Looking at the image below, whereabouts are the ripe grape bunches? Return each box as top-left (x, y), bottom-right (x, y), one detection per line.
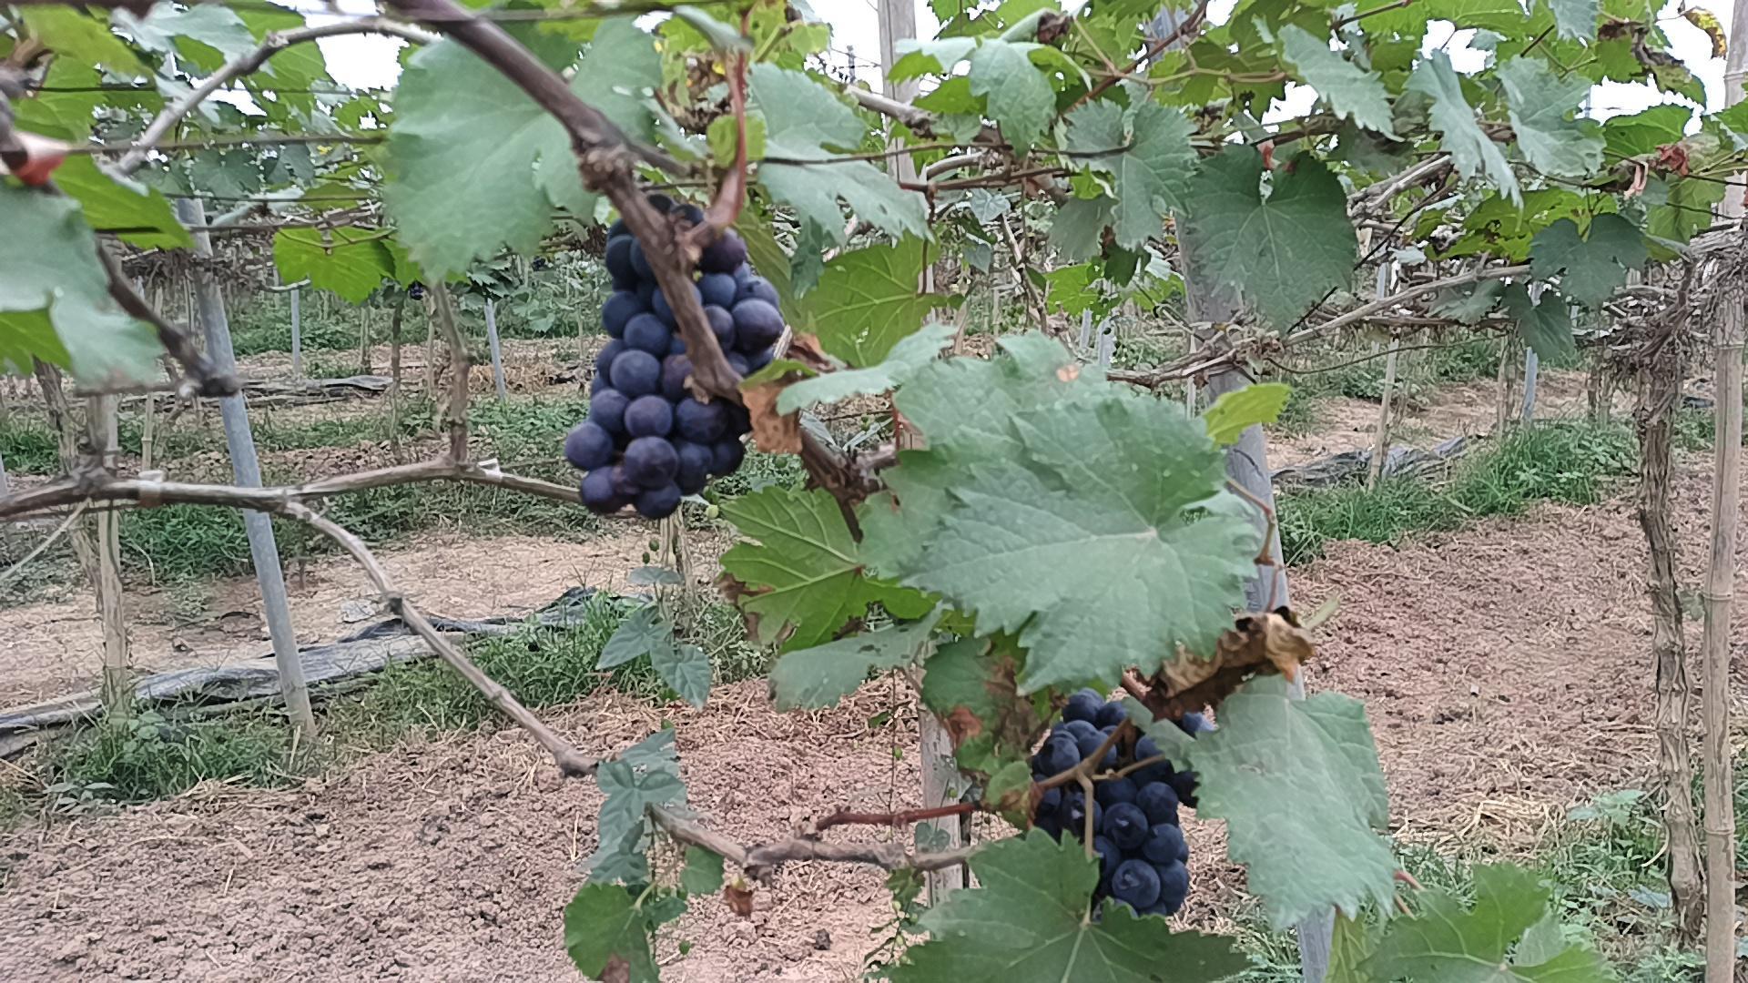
top-left (1029, 687), bottom-right (1220, 915)
top-left (564, 193), bottom-right (788, 518)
